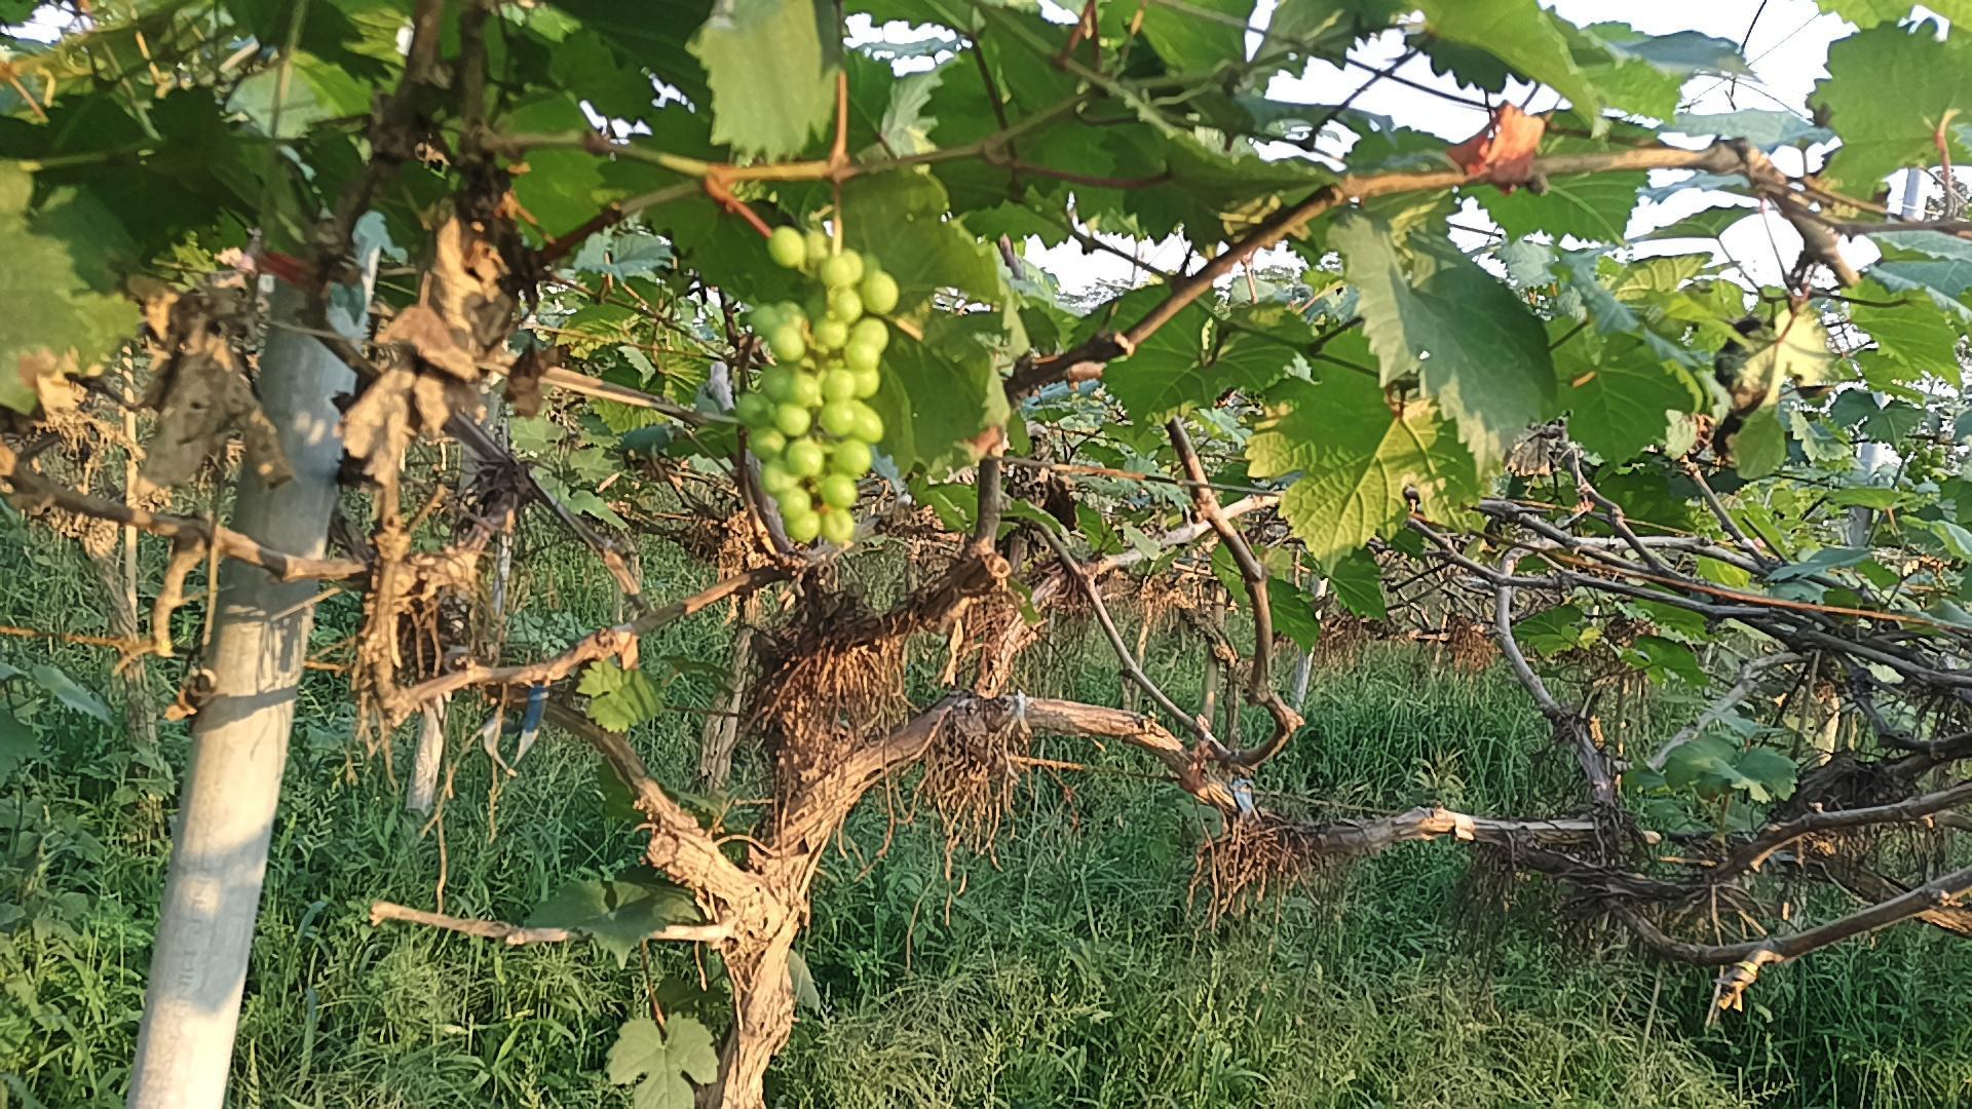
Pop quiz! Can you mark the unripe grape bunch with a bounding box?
[737,224,898,544]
